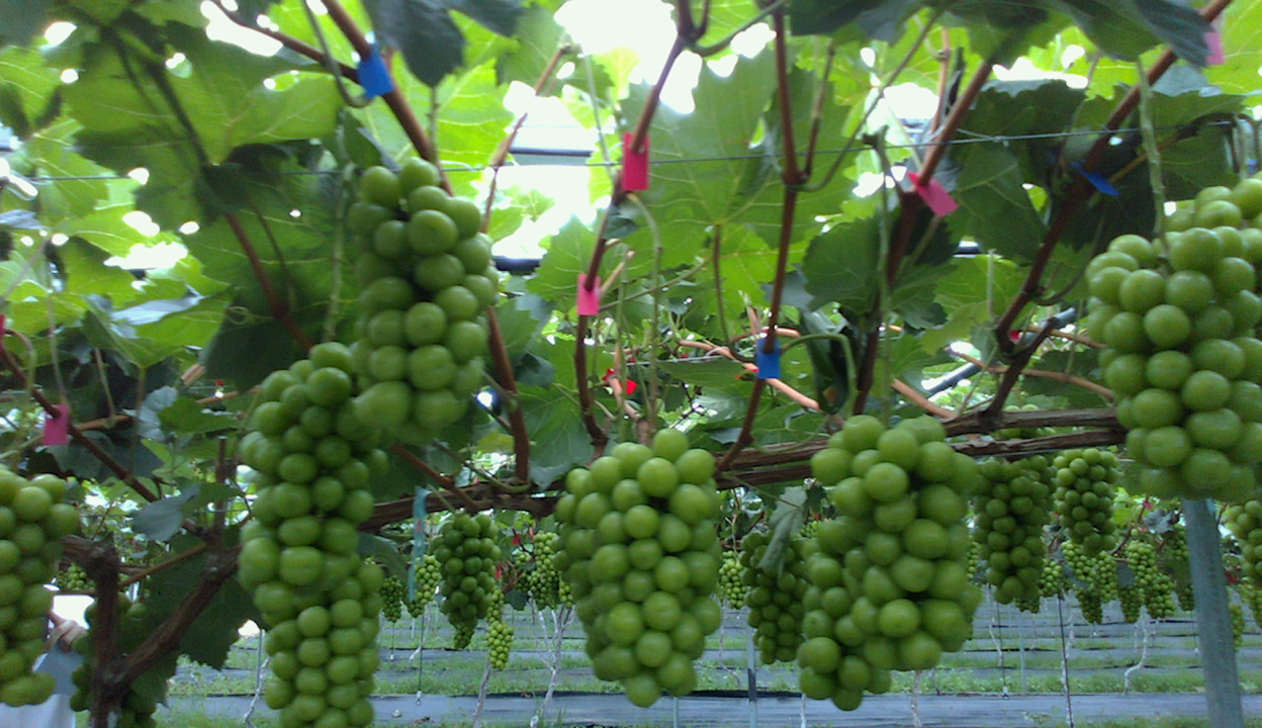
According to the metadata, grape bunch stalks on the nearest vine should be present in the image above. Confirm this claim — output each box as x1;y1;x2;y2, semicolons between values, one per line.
322;162;358;343
5;329;36;473
624;192;663;446
876;126;892;429
427;88;440;165
1138;83;1168;252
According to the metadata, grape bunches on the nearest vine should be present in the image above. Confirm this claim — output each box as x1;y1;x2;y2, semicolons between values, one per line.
237;343;395;614
798;520;892;712
0;463;80;709
263;564;383;727
1083;201;1261;502
347;157;502;449
549;428;724;709
809;414;981;672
